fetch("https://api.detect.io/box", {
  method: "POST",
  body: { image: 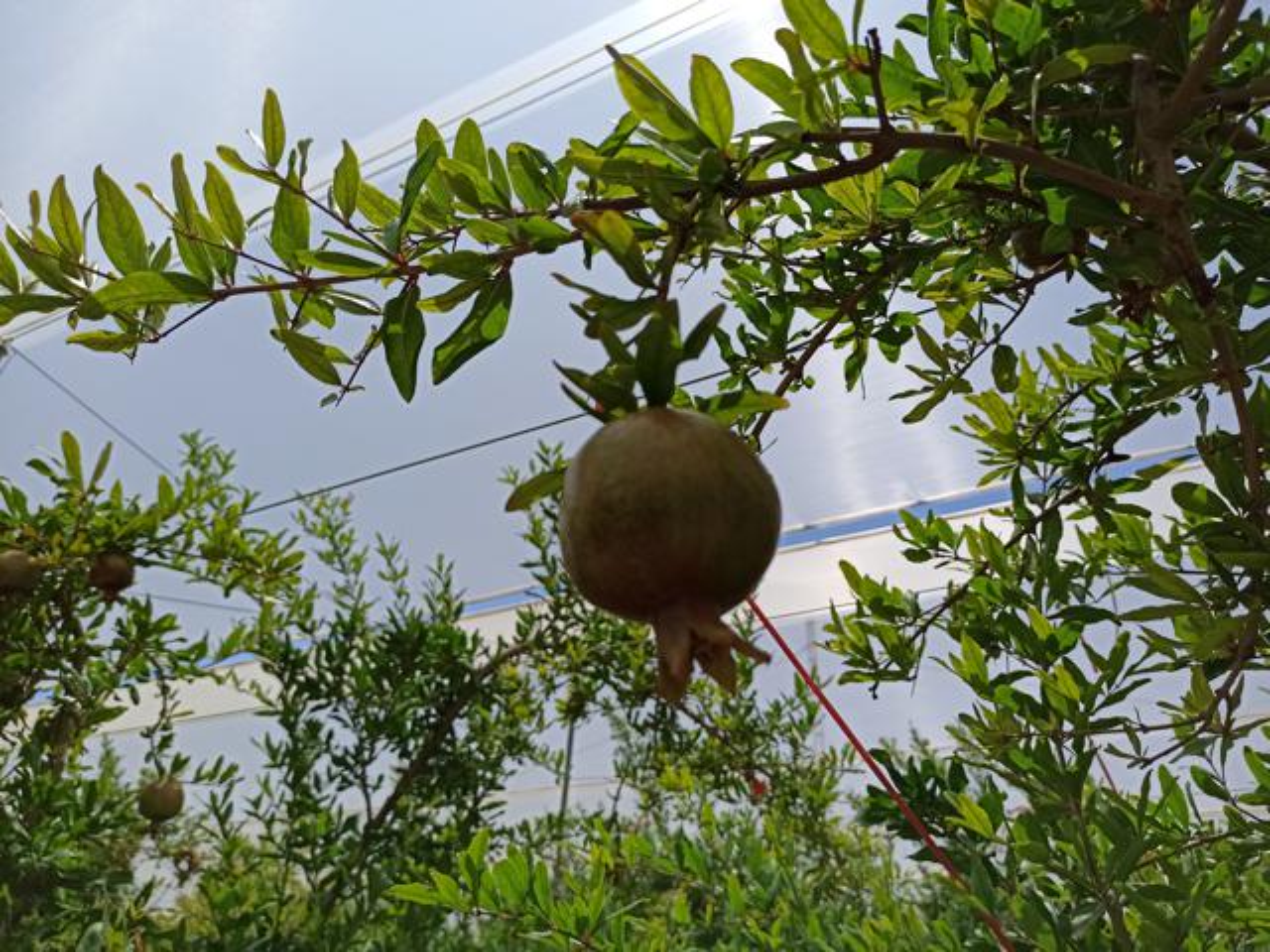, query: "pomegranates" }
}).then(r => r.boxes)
[0,549,34,591]
[558,405,784,710]
[87,551,133,605]
[137,779,183,835]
